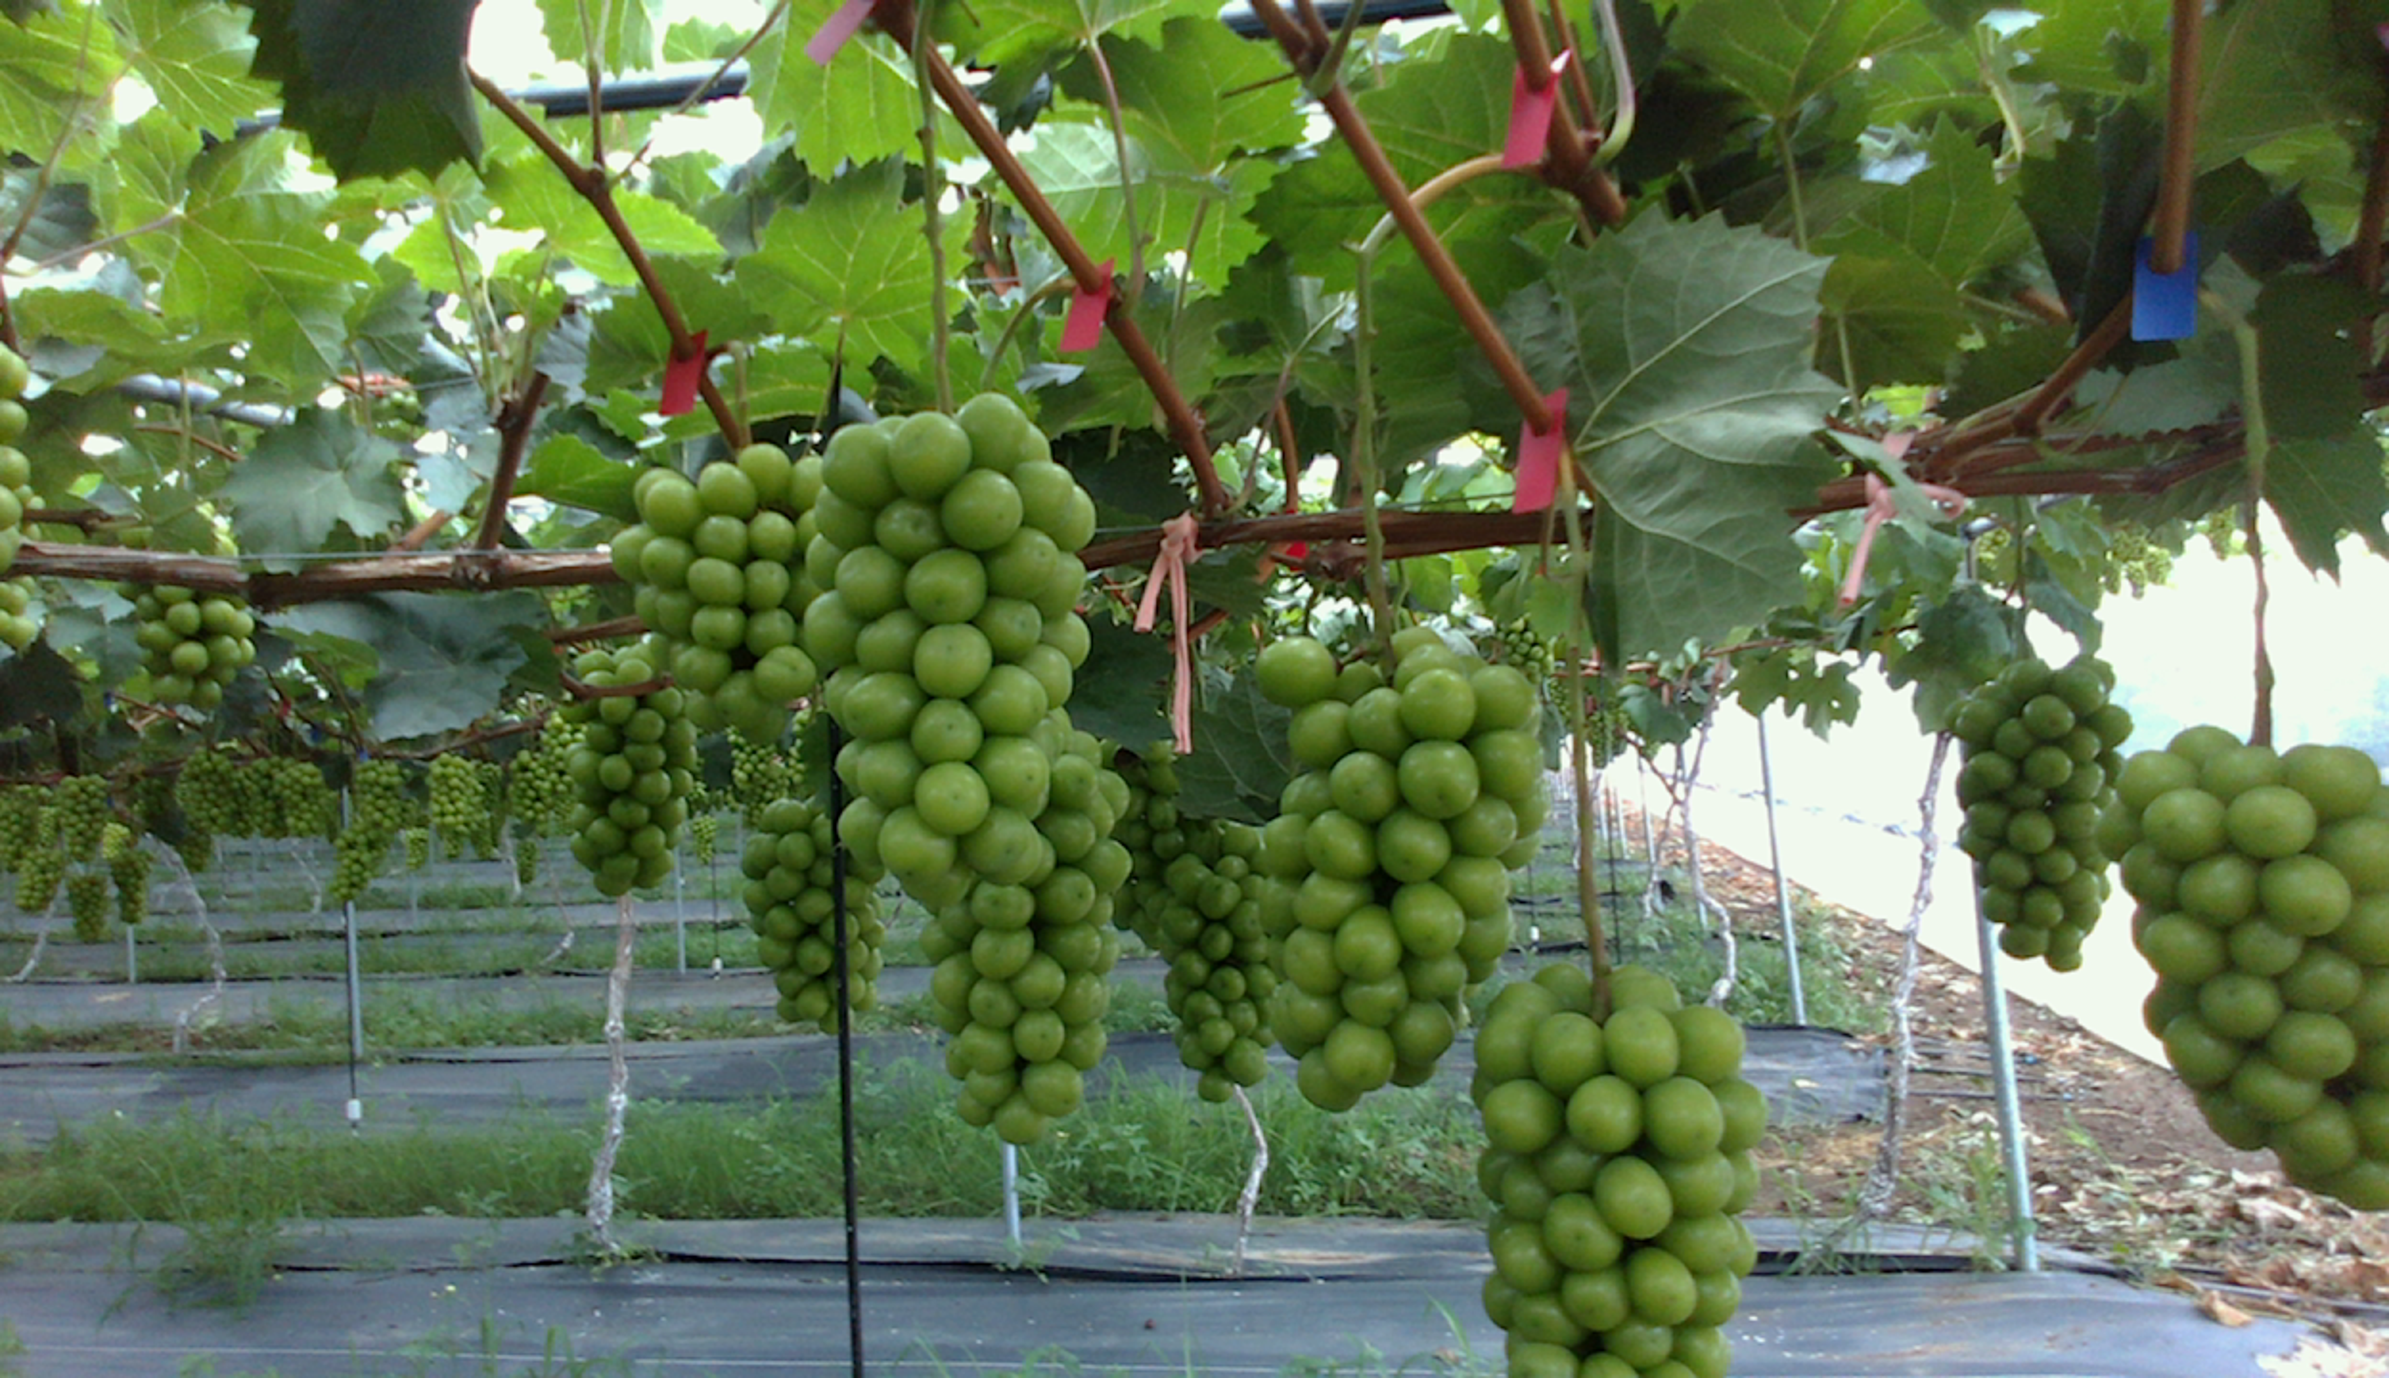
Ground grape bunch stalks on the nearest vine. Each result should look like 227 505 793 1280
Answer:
1340 153 1503 685
2196 281 2276 750
697 341 752 450
909 4 951 413
1558 444 1610 1018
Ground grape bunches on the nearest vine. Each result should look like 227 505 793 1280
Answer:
804 389 1097 905
1256 628 1547 1110
2094 727 2387 1211
611 442 823 745
1472 961 1767 1376
919 708 1129 1146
